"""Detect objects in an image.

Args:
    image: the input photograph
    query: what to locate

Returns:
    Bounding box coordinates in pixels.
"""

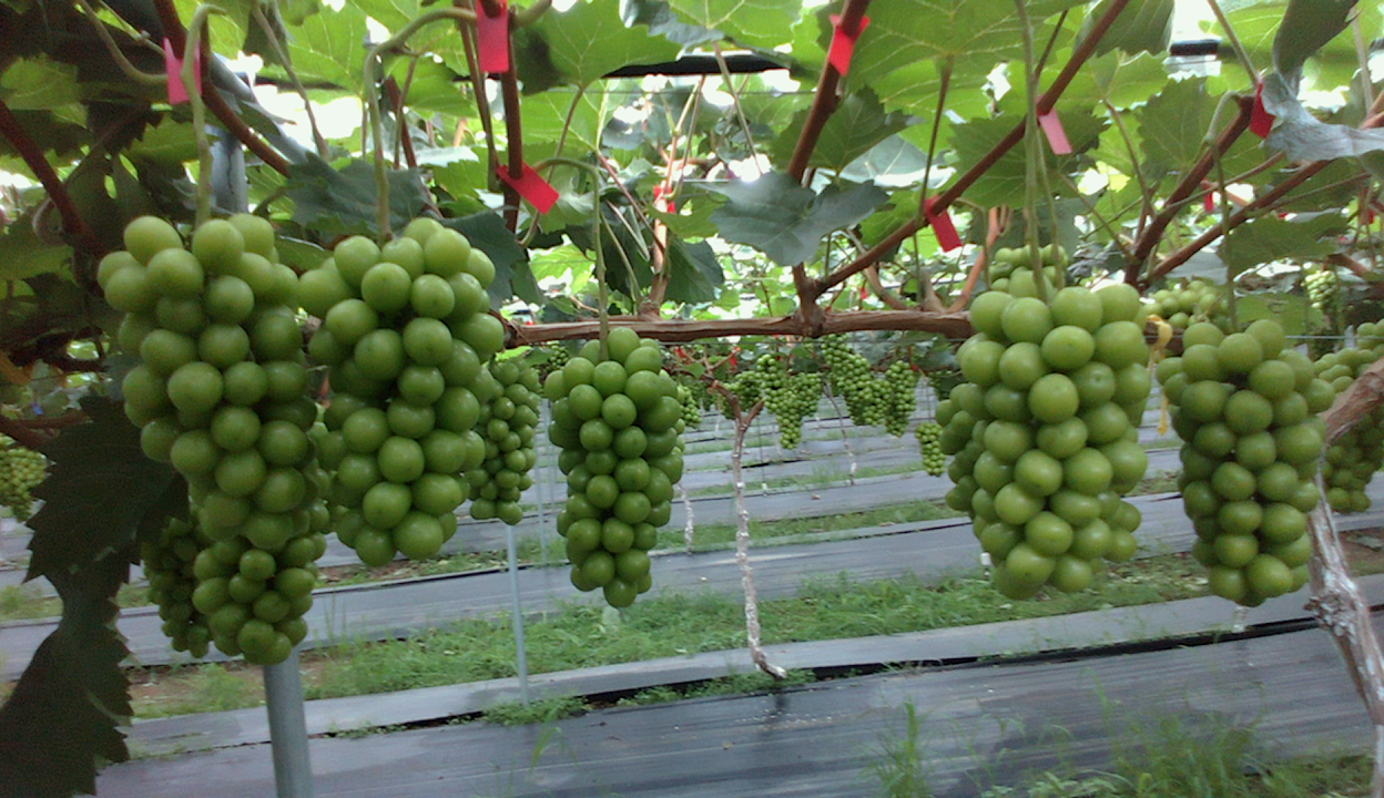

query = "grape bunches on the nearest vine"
[545,327,683,607]
[956,273,1151,601]
[191,504,328,664]
[296,216,505,570]
[98,213,319,550]
[1154,319,1334,608]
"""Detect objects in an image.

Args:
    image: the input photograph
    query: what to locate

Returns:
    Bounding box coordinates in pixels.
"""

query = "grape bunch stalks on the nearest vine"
[1016,1,1050,300]
[362,8,474,244]
[1191,91,1239,330]
[535,155,608,361]
[179,6,222,225]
